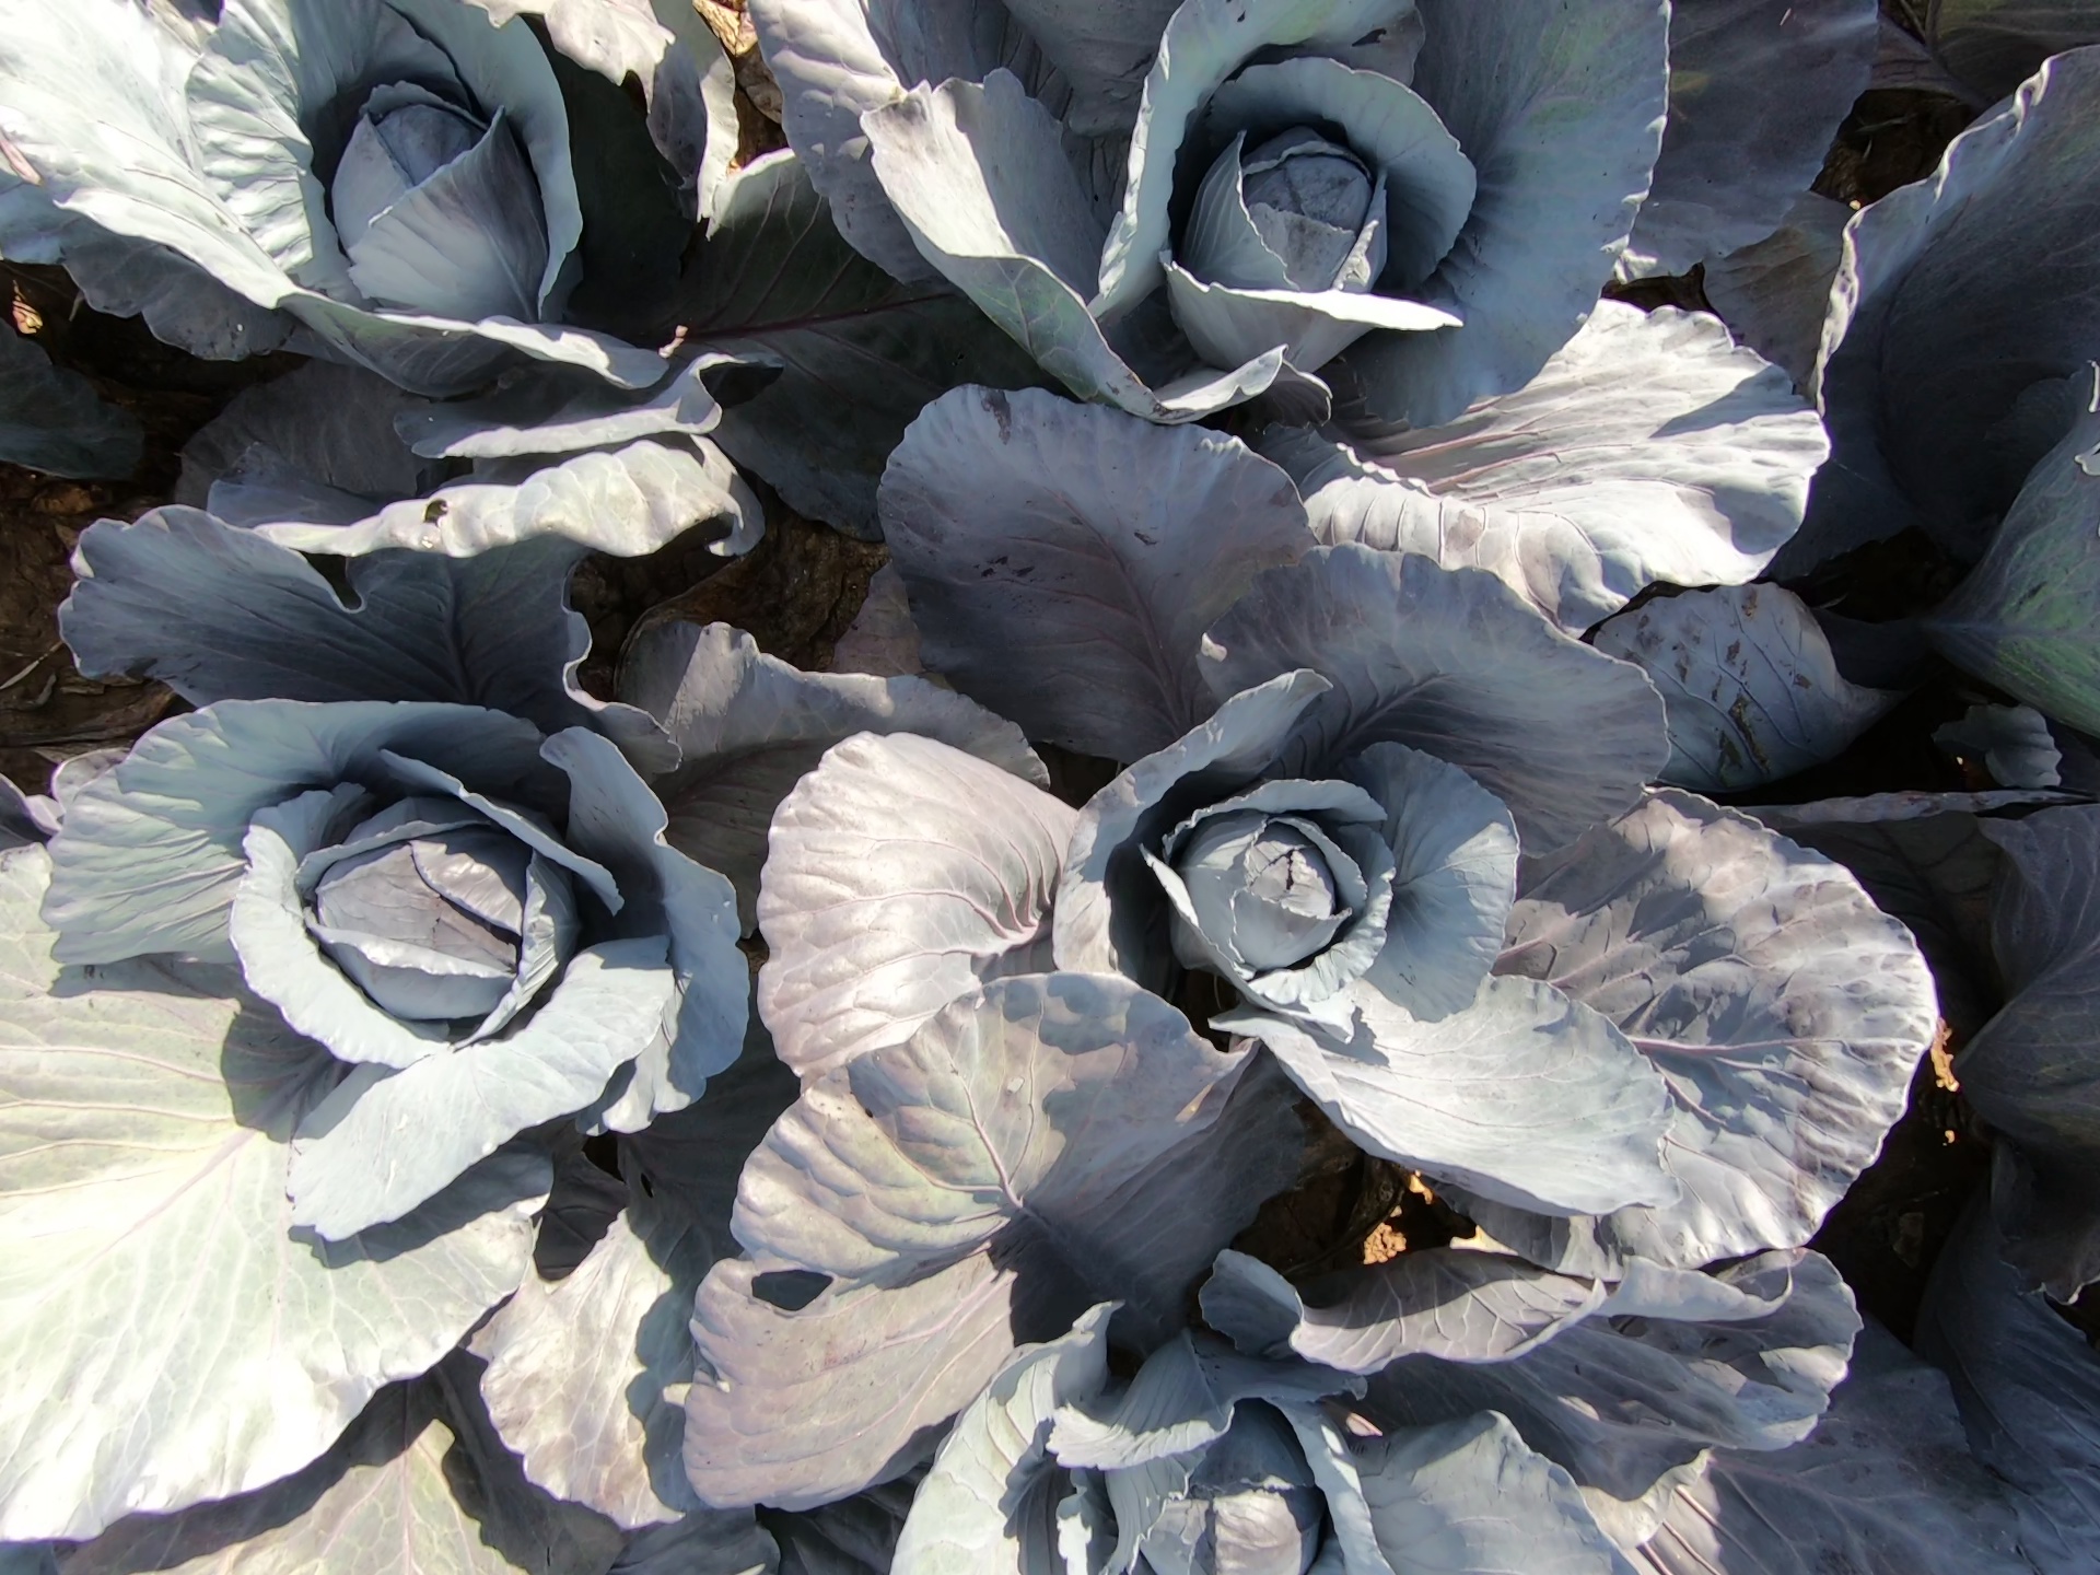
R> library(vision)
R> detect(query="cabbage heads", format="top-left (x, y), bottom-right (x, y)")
top-left (1209, 824), bottom-right (1344, 959)
top-left (1136, 1364), bottom-right (1323, 1570)
top-left (317, 793), bottom-right (568, 1012)
top-left (1209, 136), bottom-right (1389, 326)
top-left (340, 105), bottom-right (542, 320)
